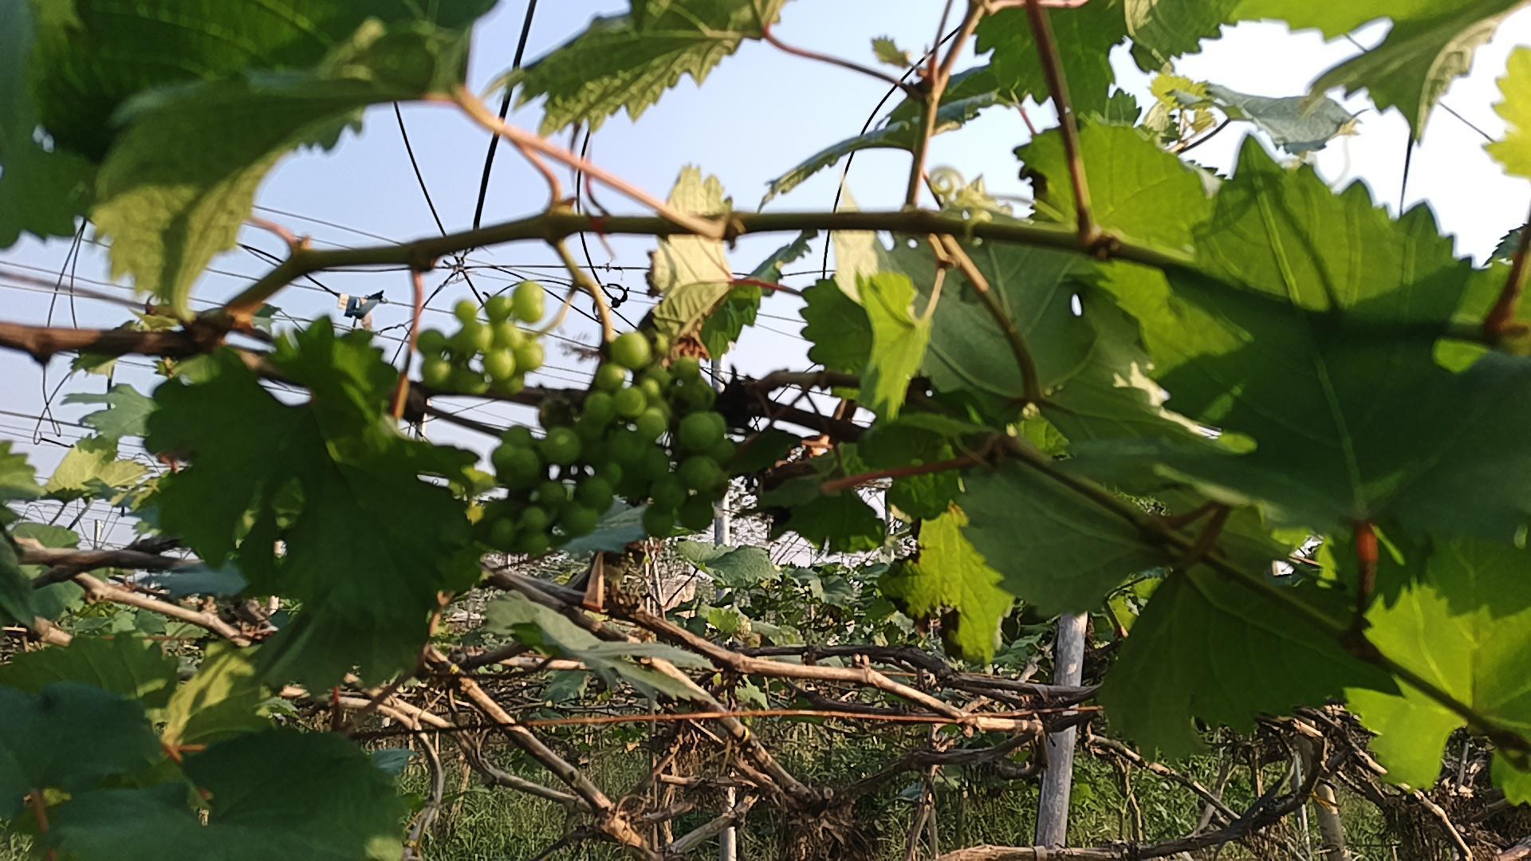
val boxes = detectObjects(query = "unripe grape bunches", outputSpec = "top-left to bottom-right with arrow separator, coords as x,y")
477,328 -> 736,555
417,281 -> 545,395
